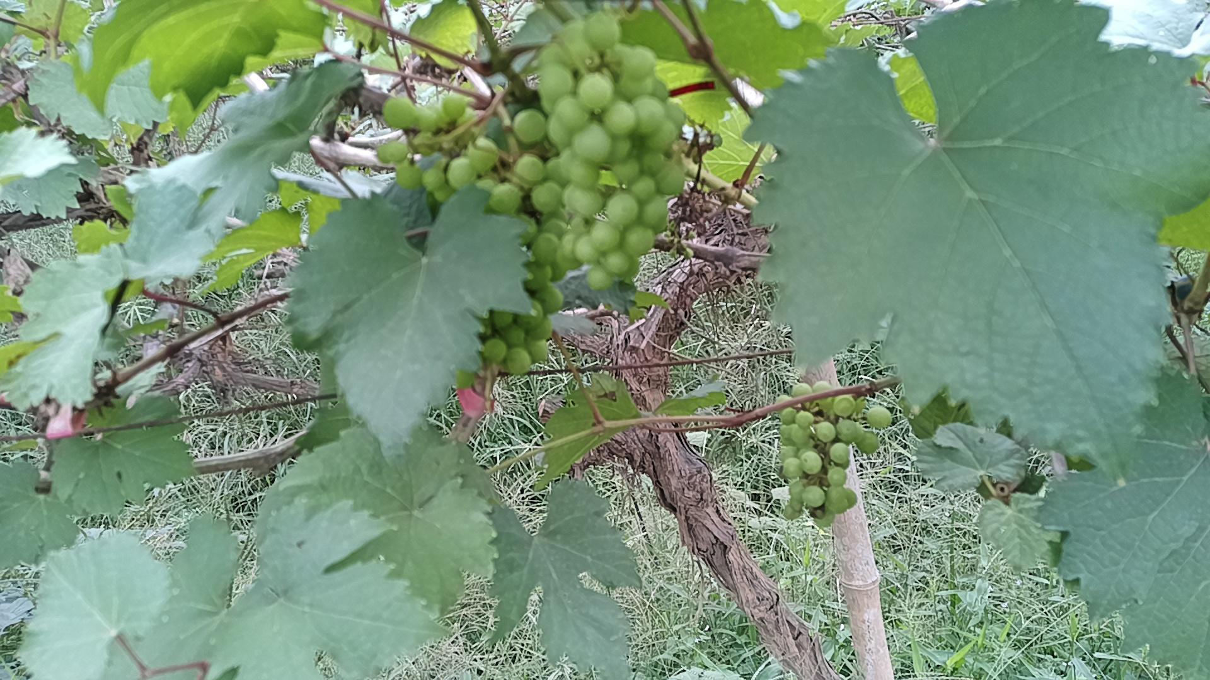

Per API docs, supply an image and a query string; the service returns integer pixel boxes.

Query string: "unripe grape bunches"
[773,381,891,527]
[375,83,585,387]
[538,13,684,288]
